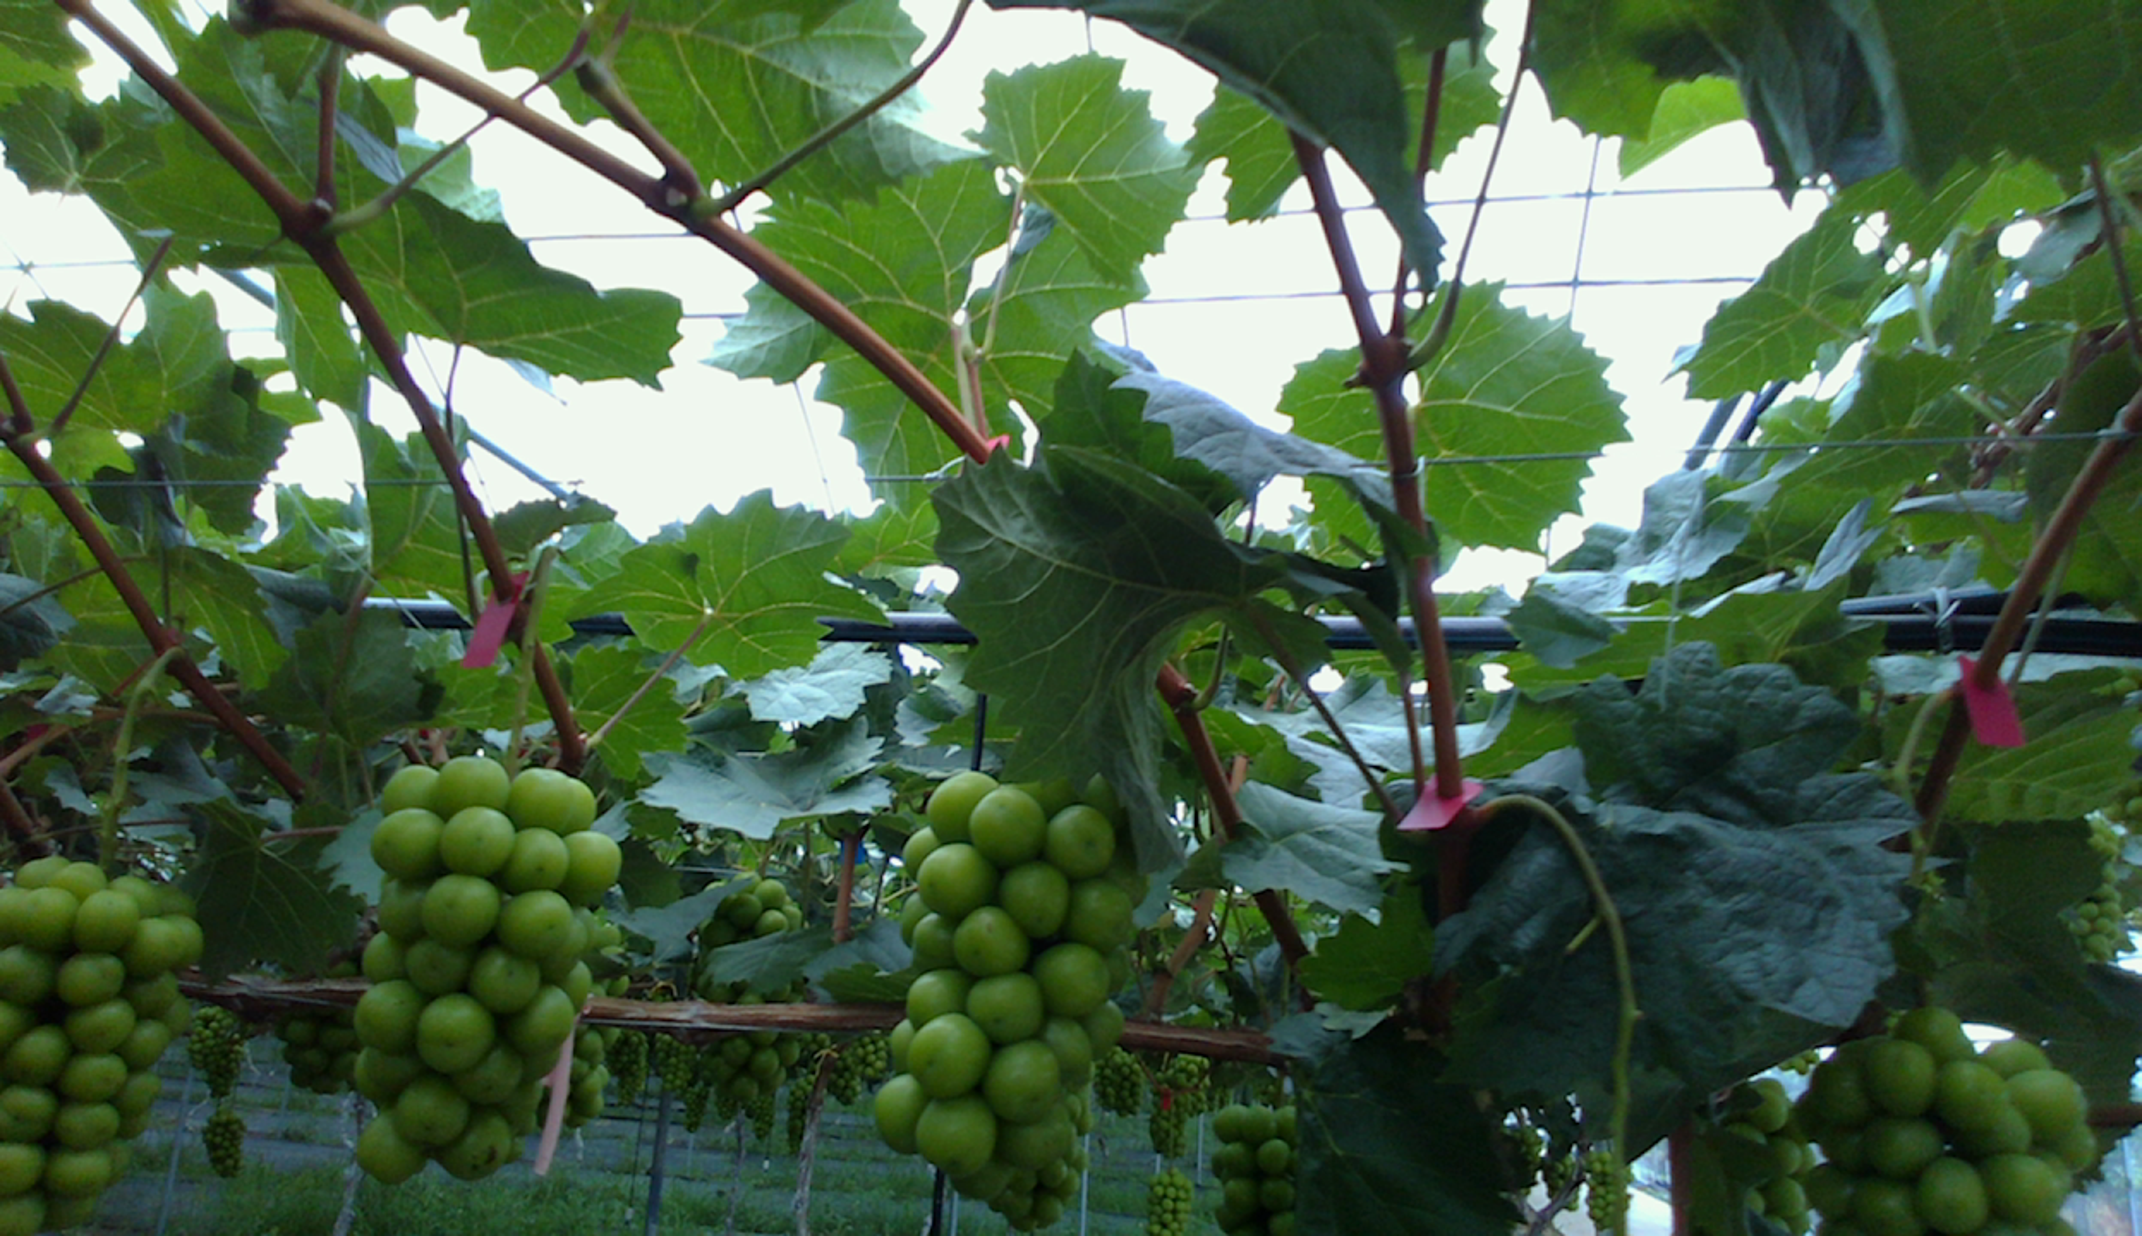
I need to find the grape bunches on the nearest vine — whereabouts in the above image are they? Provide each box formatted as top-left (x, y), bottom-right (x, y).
top-left (1800, 1006), bottom-right (2099, 1234)
top-left (352, 754), bottom-right (623, 1184)
top-left (867, 767), bottom-right (1147, 1209)
top-left (0, 855), bottom-right (206, 1234)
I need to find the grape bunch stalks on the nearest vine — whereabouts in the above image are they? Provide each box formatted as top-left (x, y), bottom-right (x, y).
top-left (98, 645), bottom-right (184, 872)
top-left (1891, 683), bottom-right (1962, 1008)
top-left (505, 549), bottom-right (558, 776)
